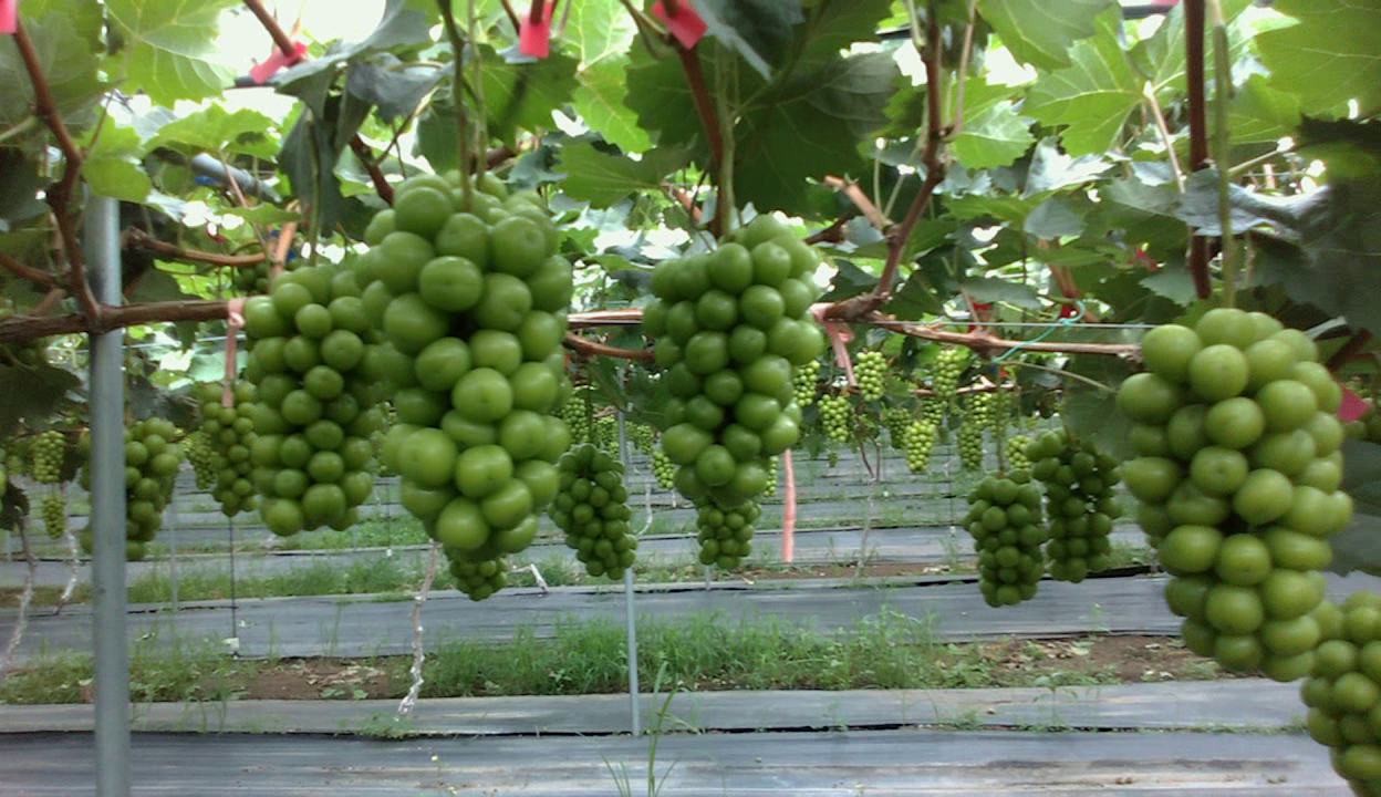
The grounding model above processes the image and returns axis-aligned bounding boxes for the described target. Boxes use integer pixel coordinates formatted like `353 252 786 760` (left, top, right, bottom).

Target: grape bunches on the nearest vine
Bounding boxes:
1117 306 1354 682
642 213 826 510
242 262 394 538
352 170 574 566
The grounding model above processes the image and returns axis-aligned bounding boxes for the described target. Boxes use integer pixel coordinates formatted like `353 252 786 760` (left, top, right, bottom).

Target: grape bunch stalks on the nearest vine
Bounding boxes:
1213 27 1236 307
303 122 321 266
436 4 473 214
714 34 740 238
